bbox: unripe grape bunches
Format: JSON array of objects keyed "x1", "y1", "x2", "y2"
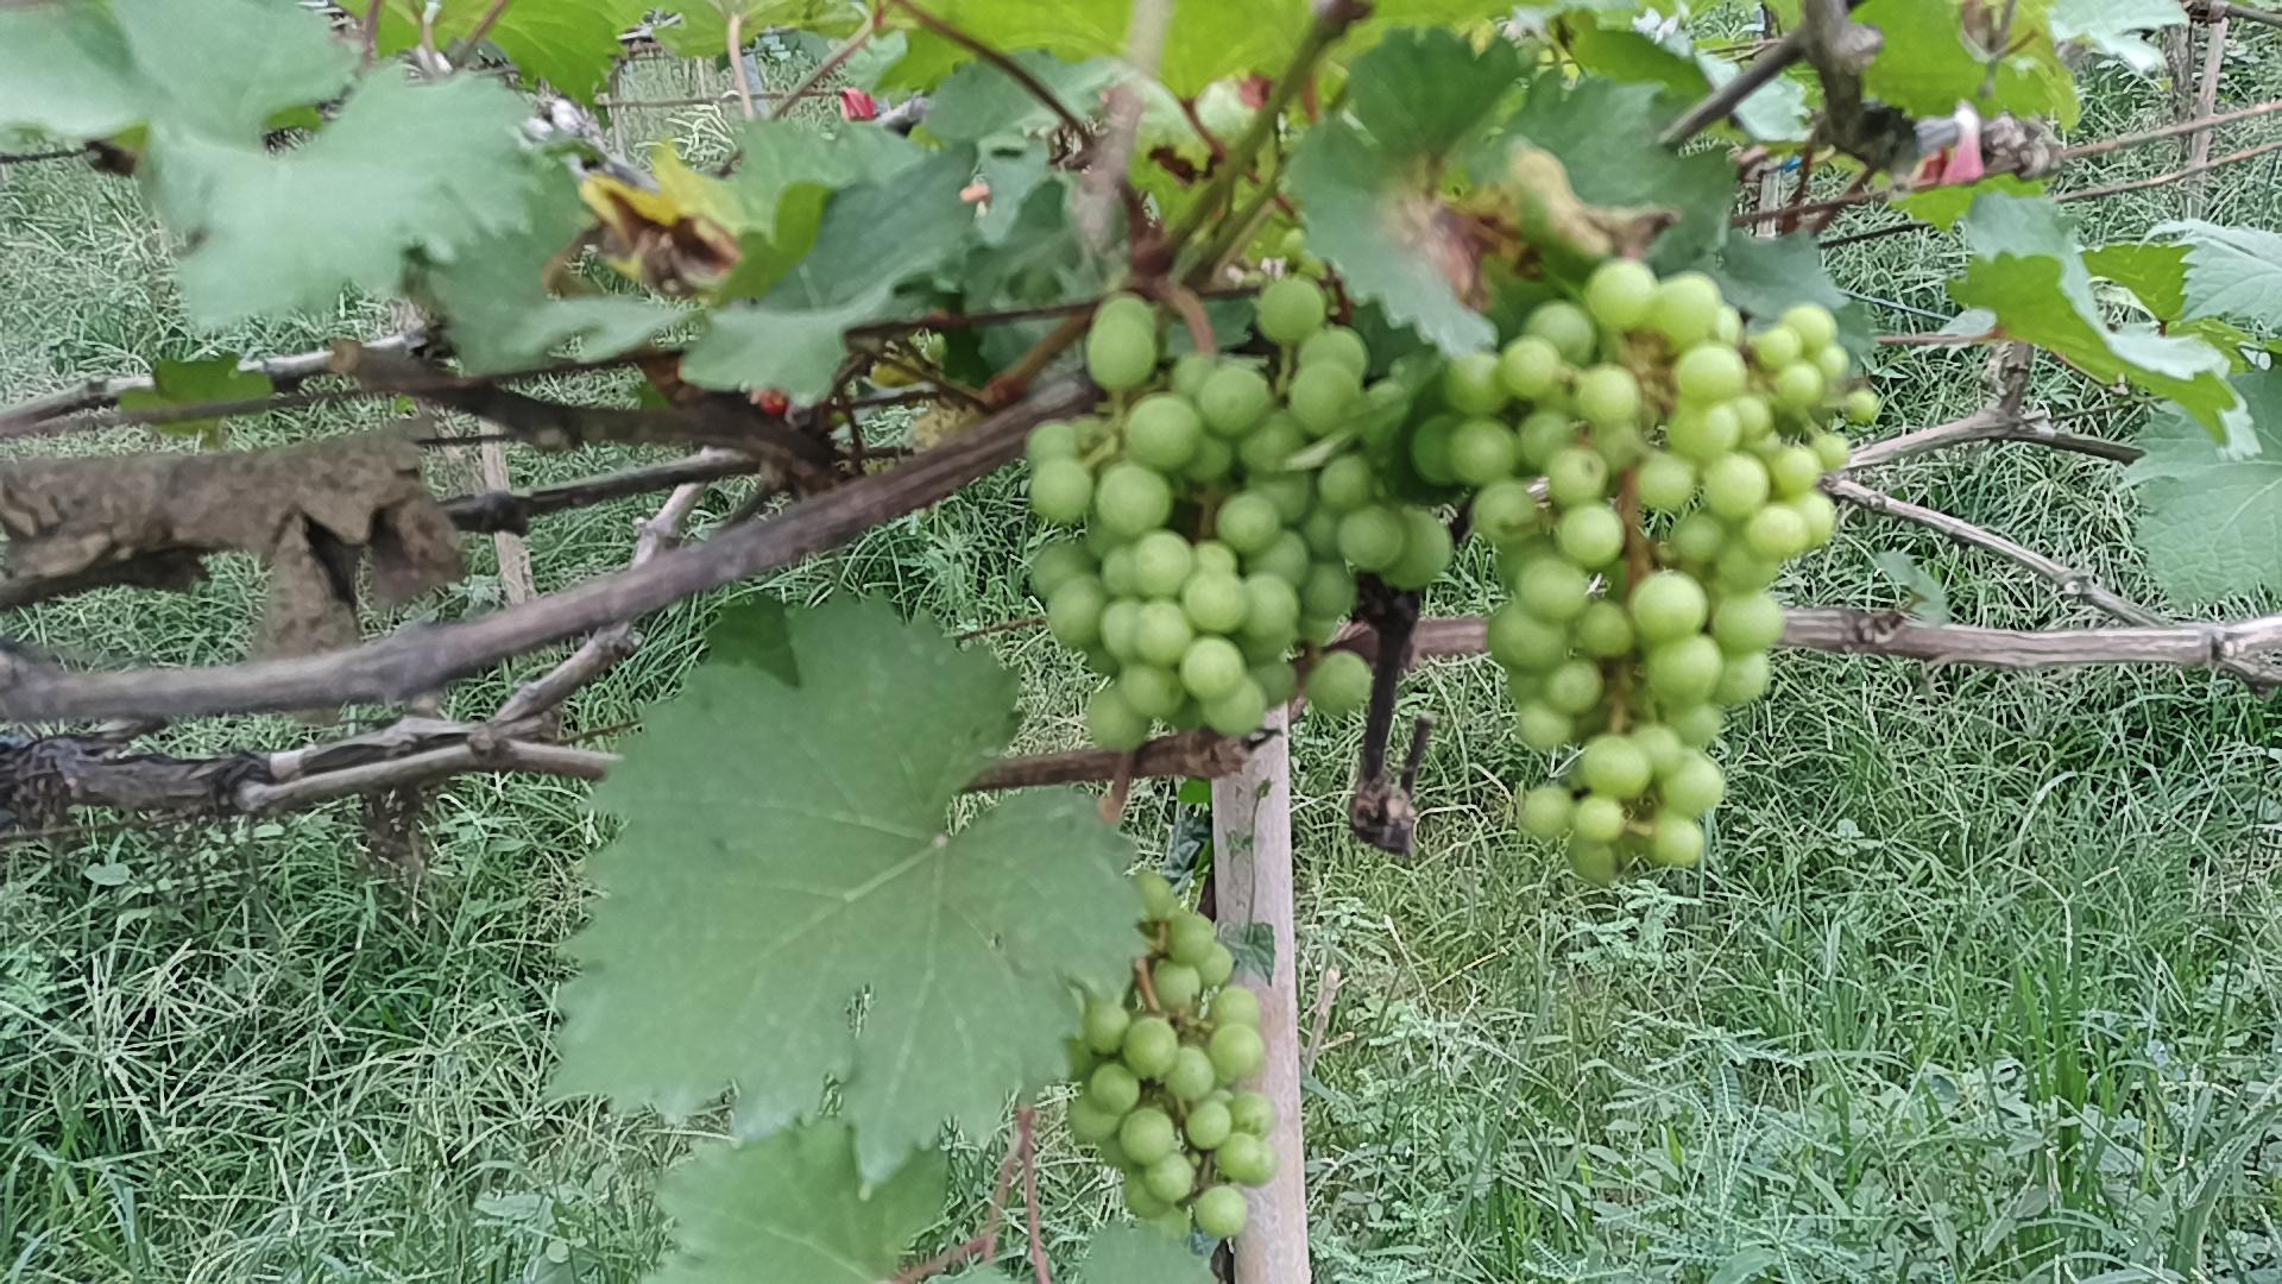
[
  {"x1": 1066, "y1": 873, "x2": 1282, "y2": 1242},
  {"x1": 1407, "y1": 258, "x2": 1883, "y2": 882},
  {"x1": 1026, "y1": 278, "x2": 1452, "y2": 750}
]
